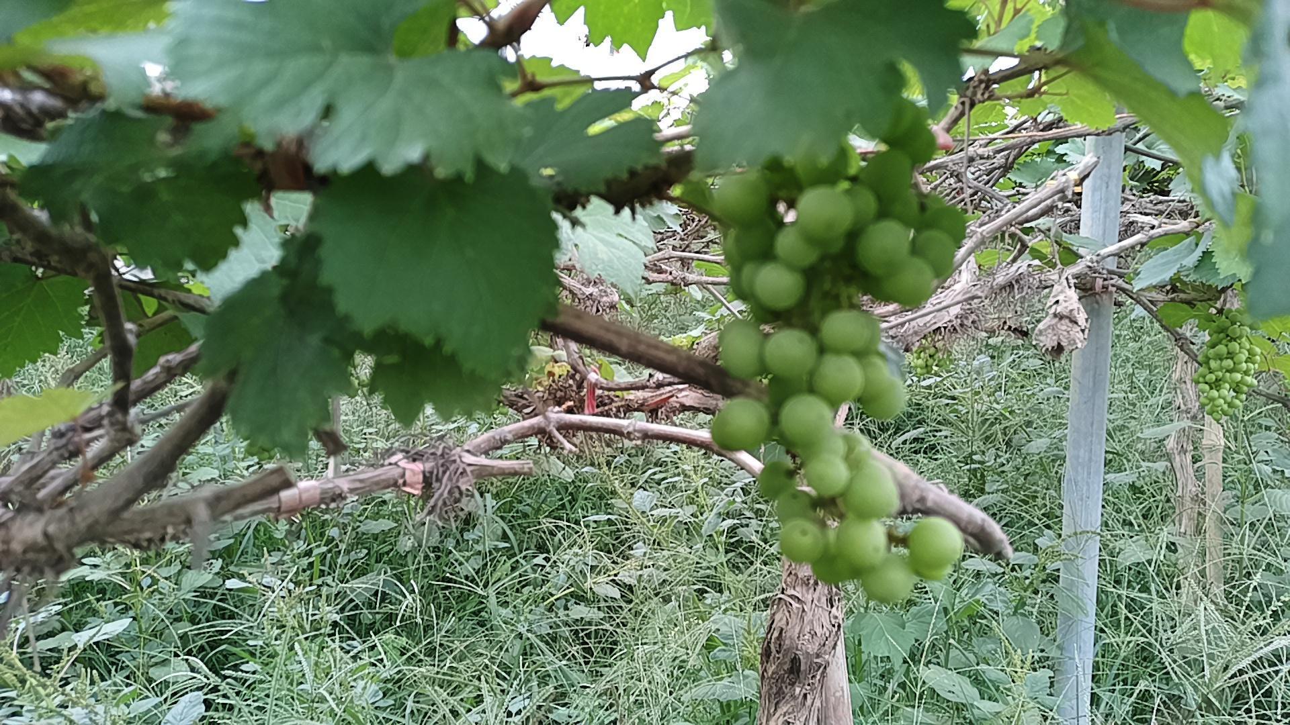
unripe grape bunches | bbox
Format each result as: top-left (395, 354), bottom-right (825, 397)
top-left (1192, 307), bottom-right (1261, 422)
top-left (712, 94), bottom-right (965, 602)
